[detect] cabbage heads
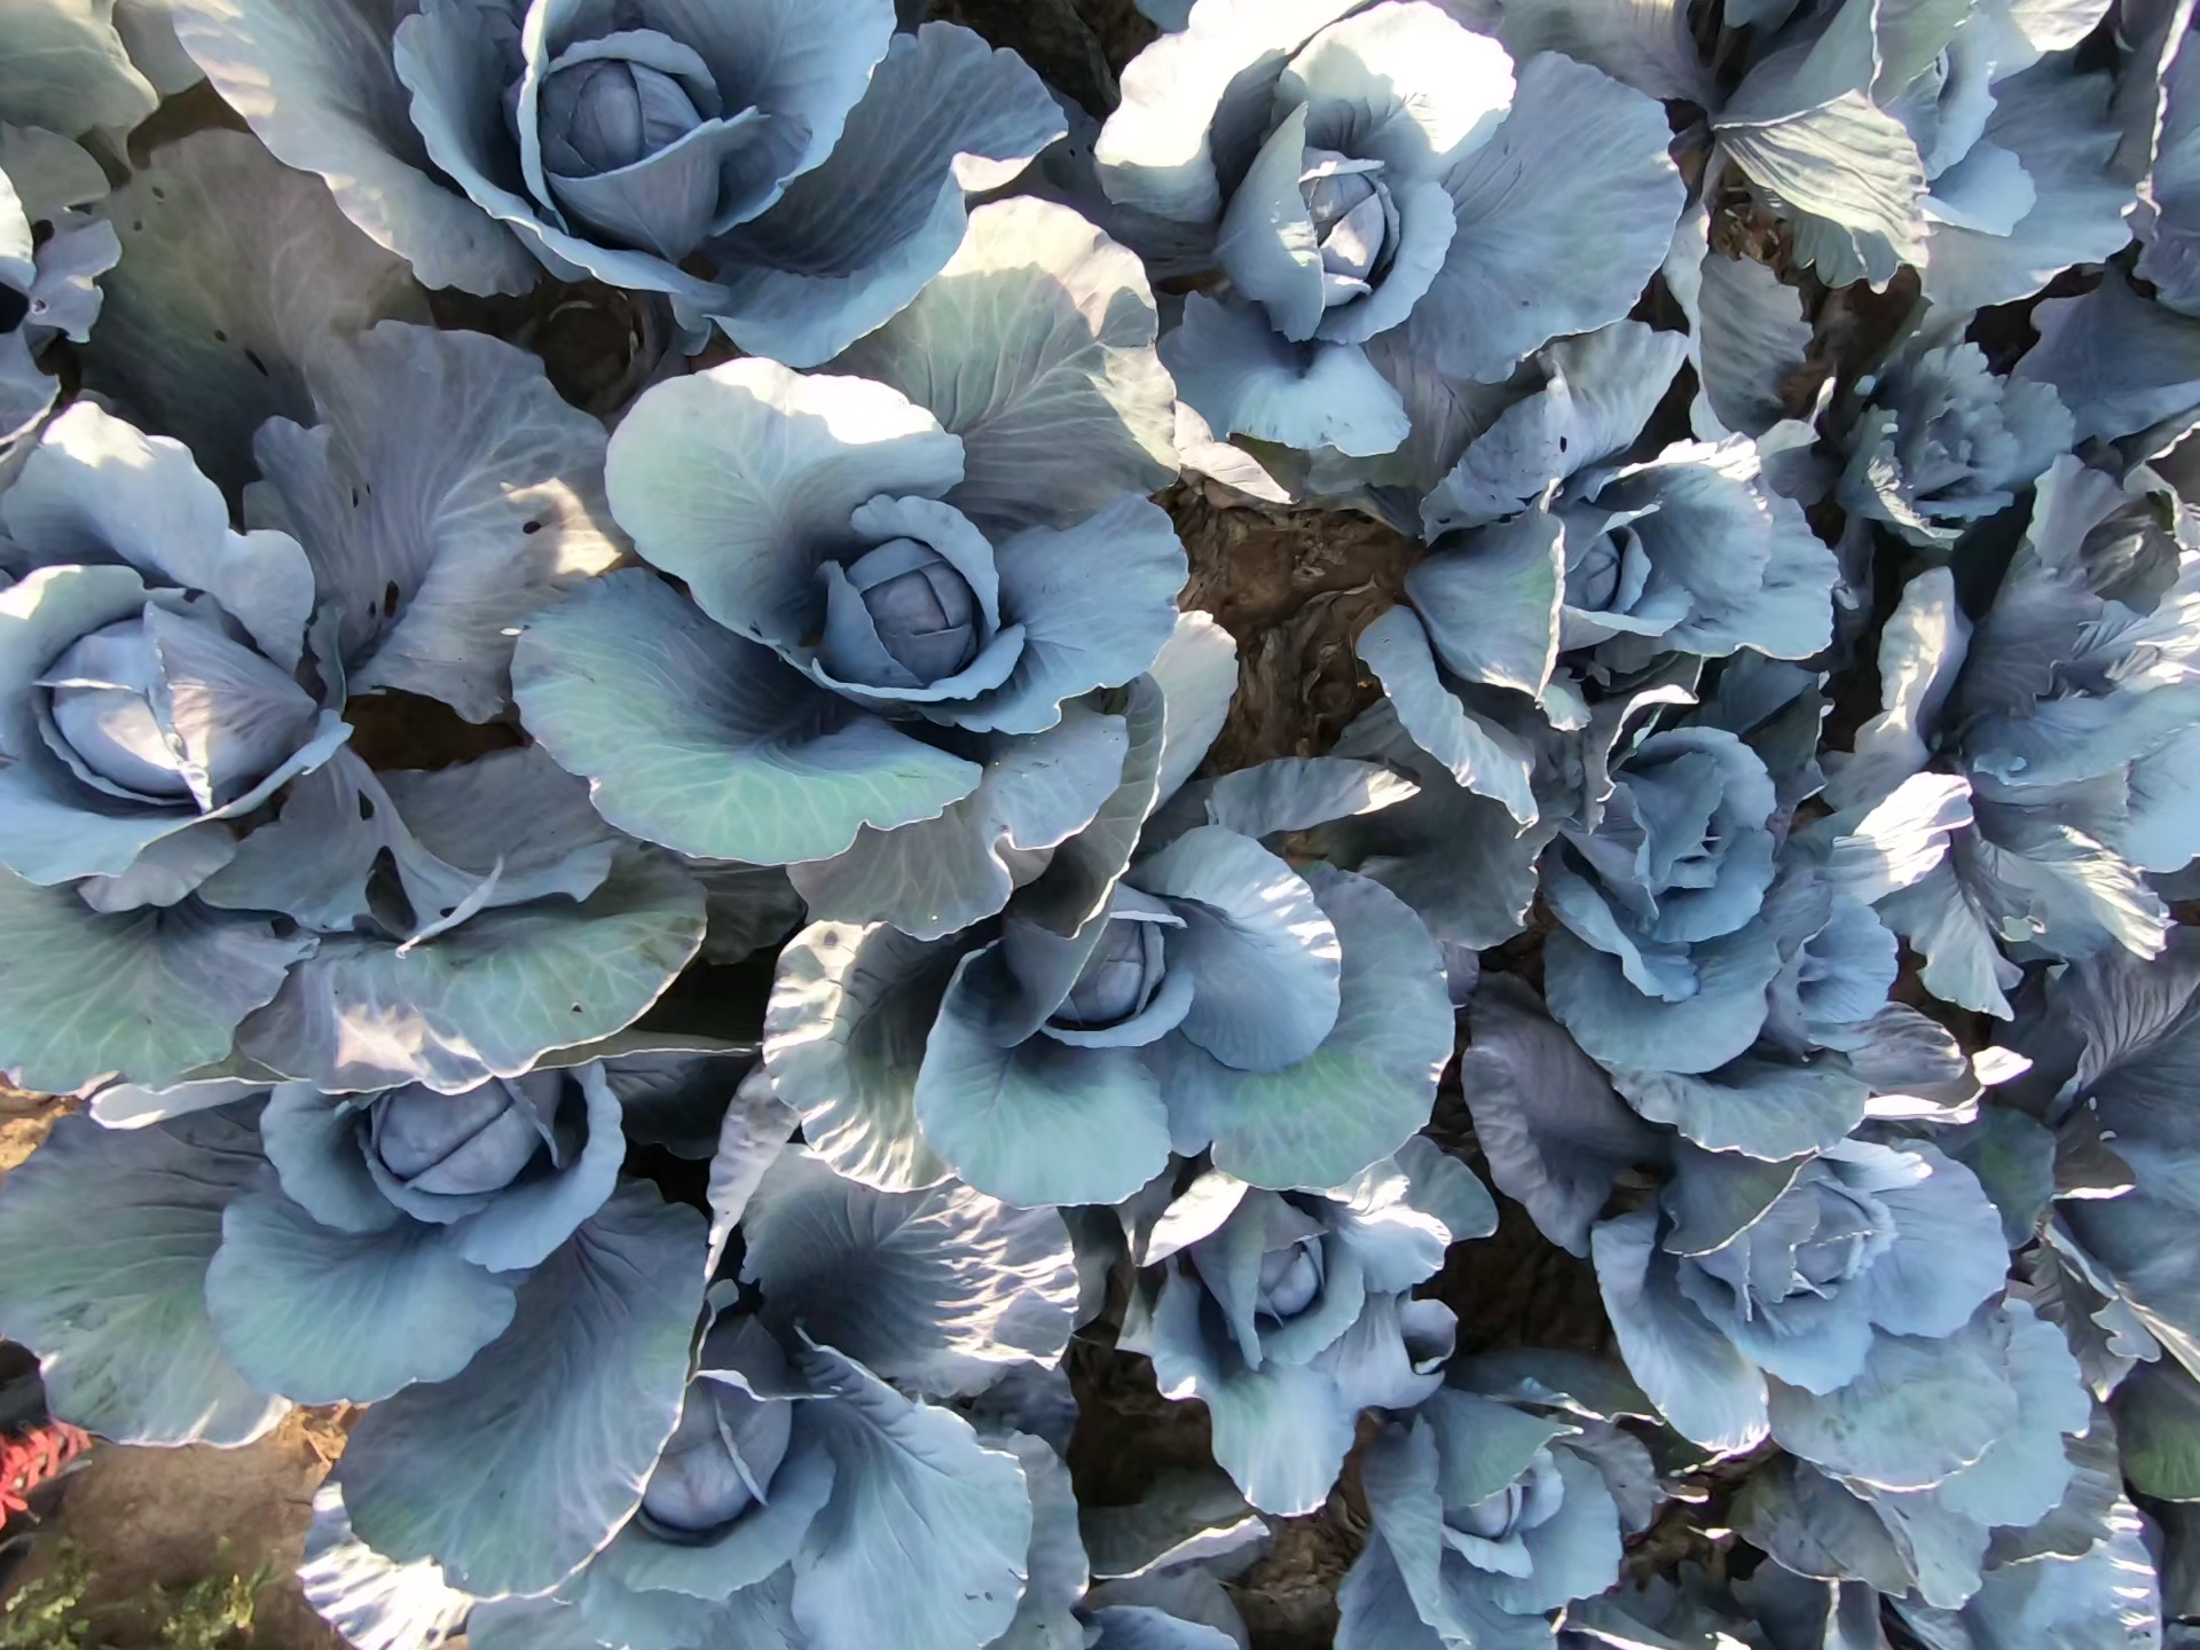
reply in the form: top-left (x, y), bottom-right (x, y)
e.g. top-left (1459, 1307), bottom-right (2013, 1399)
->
top-left (847, 539), bottom-right (983, 679)
top-left (539, 57), bottom-right (702, 229)
top-left (1437, 1428), bottom-right (1533, 1535)
top-left (1256, 156), bottom-right (1388, 291)
top-left (57, 626), bottom-right (274, 811)
top-left (1731, 1176), bottom-right (1860, 1286)
top-left (1530, 519), bottom-right (1632, 637)
top-left (1026, 890), bottom-right (1172, 1030)
top-left (372, 1043), bottom-right (556, 1200)
top-left (1571, 770), bottom-right (1700, 893)
top-left (629, 1338), bottom-right (785, 1532)
top-left (1209, 1194), bottom-right (1325, 1317)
